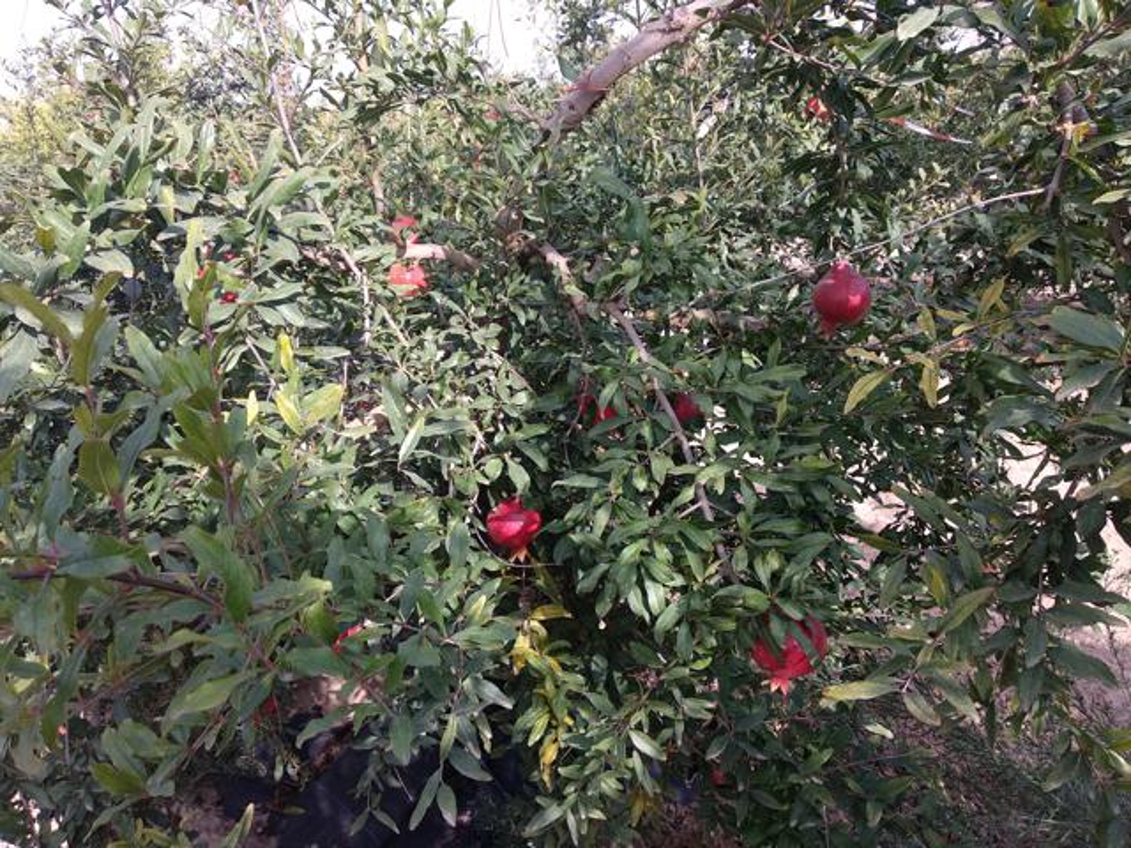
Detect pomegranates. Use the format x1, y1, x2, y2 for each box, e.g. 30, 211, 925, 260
391, 216, 419, 247
484, 496, 544, 564
813, 261, 873, 341
673, 394, 702, 422
594, 406, 619, 426
387, 263, 428, 297
749, 620, 827, 698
